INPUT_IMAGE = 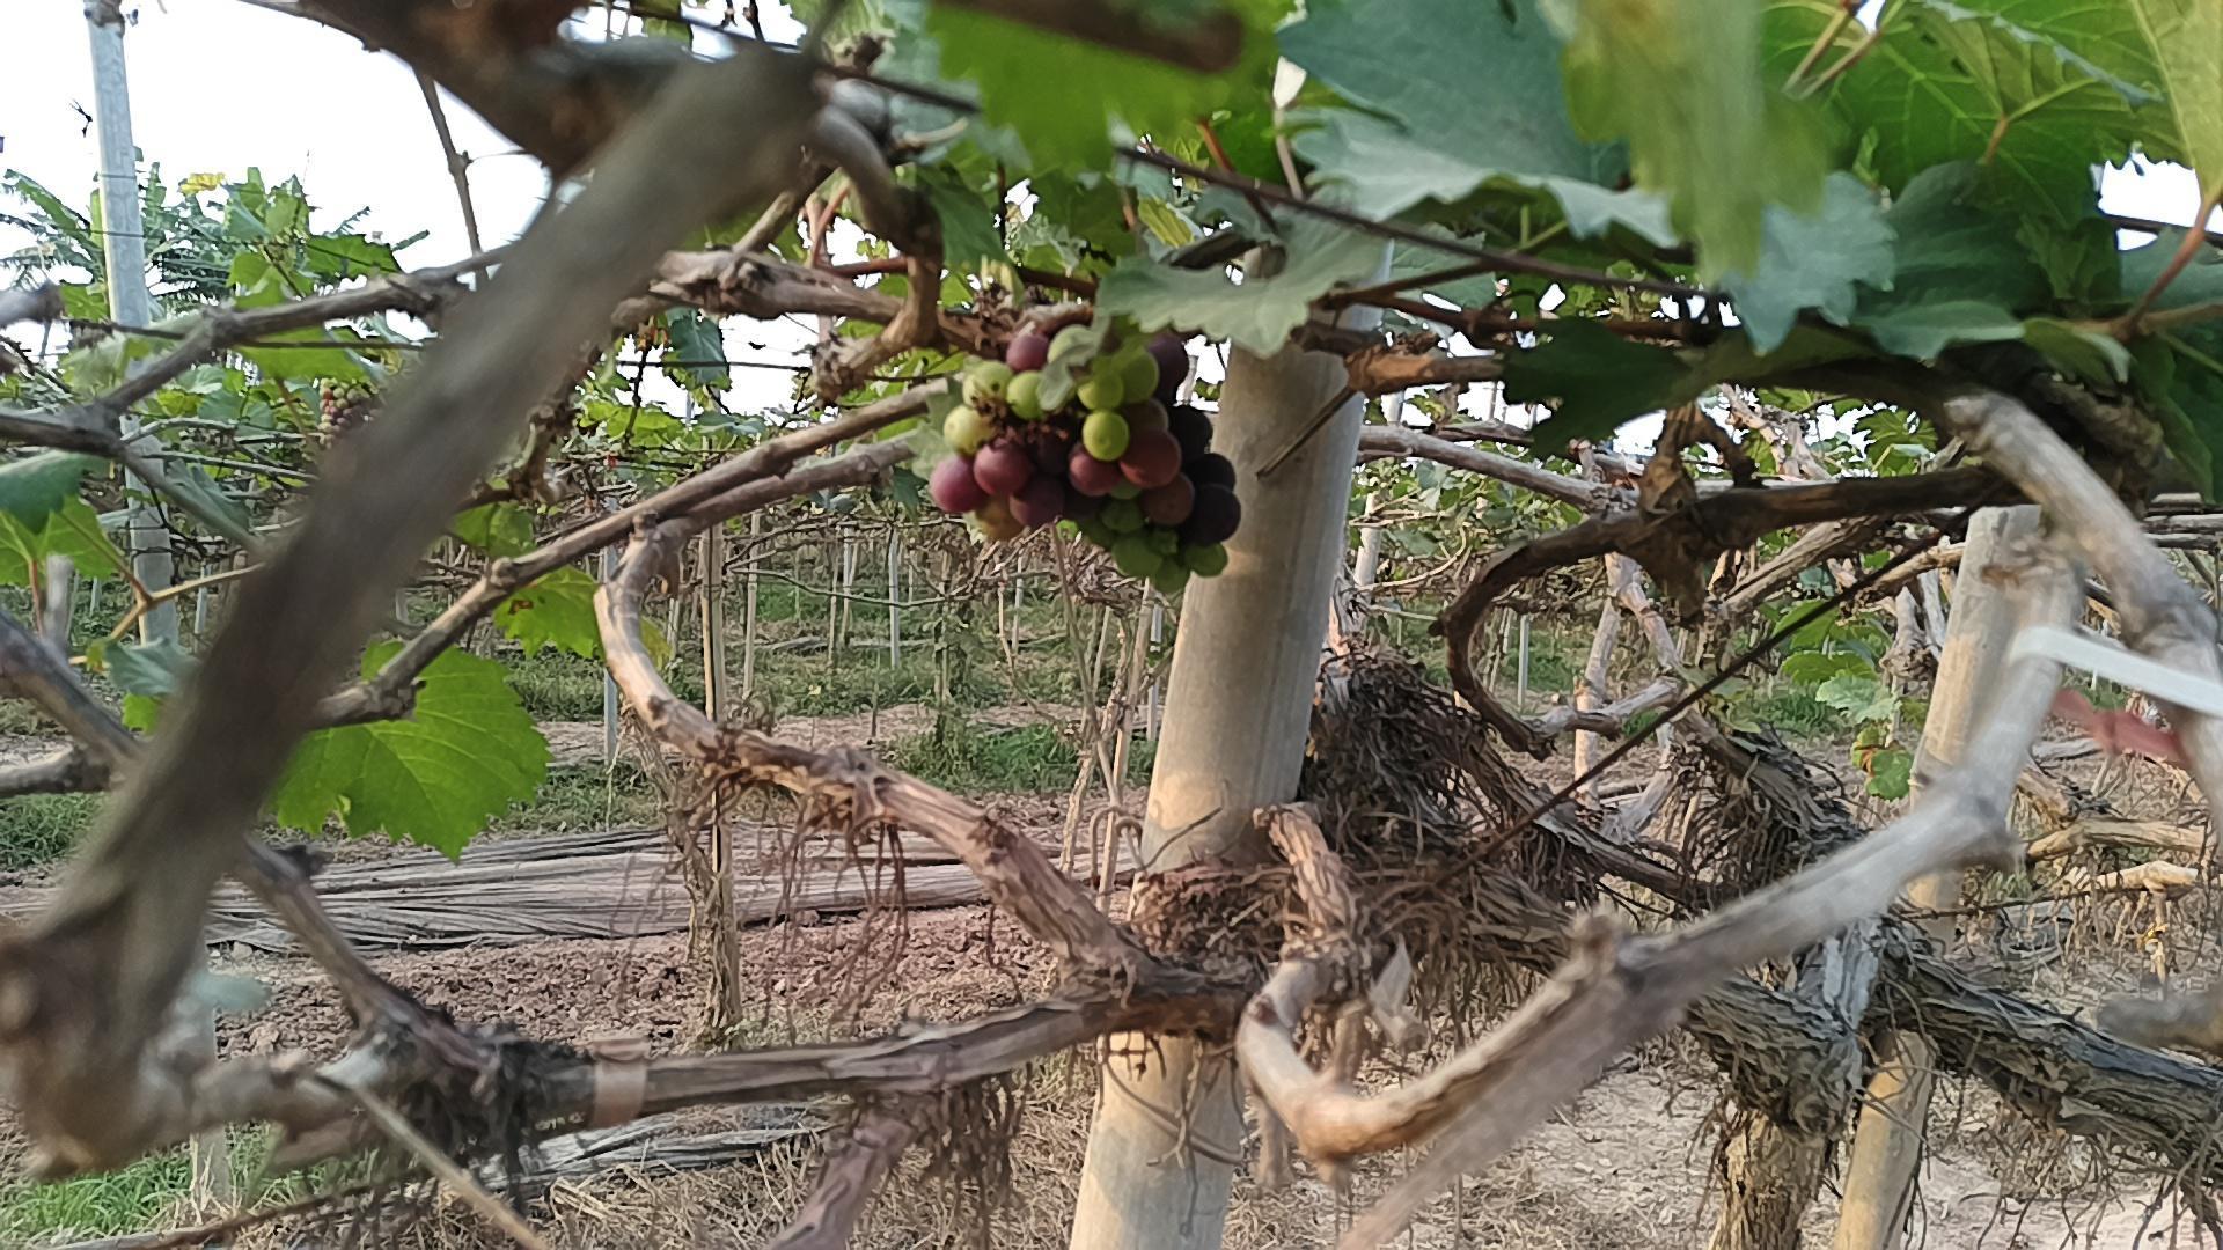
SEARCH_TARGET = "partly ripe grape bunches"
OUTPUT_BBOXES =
[314,380,380,462]
[932,304,1240,593]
